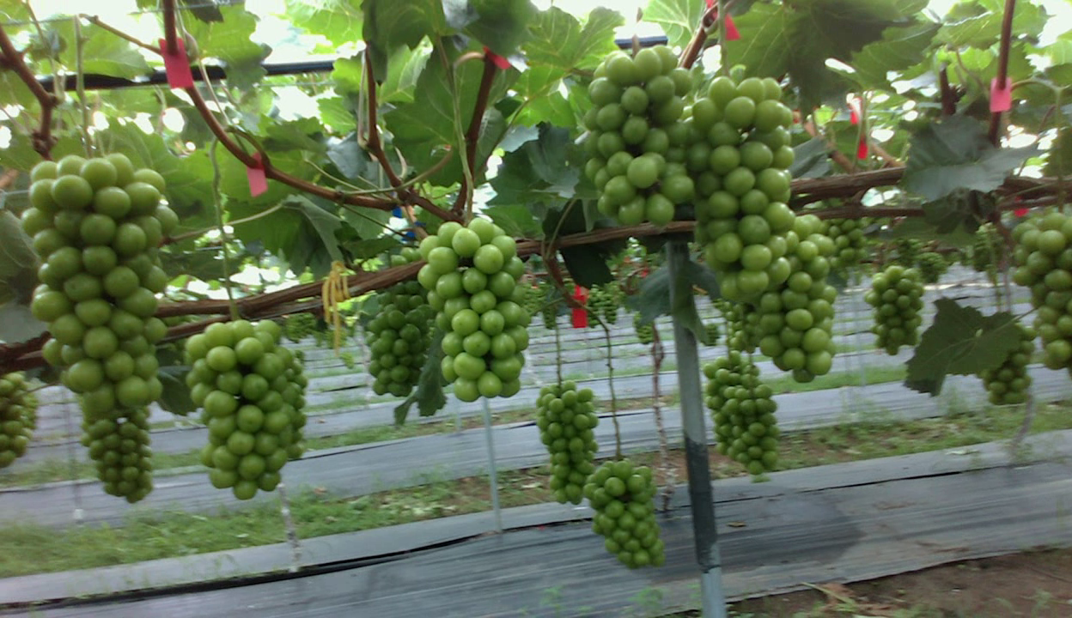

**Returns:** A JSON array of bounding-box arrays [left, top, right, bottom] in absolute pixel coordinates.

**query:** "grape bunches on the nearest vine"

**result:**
[[418, 219, 530, 401], [1012, 213, 1071, 370], [23, 154, 177, 411], [760, 215, 836, 382], [583, 45, 697, 228], [186, 319, 304, 500], [685, 76, 795, 300]]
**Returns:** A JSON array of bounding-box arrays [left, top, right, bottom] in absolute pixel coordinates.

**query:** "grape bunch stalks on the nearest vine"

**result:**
[[451, 51, 485, 227], [209, 136, 241, 321], [716, 1, 729, 76], [1008, 76, 1065, 211], [73, 13, 93, 159]]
